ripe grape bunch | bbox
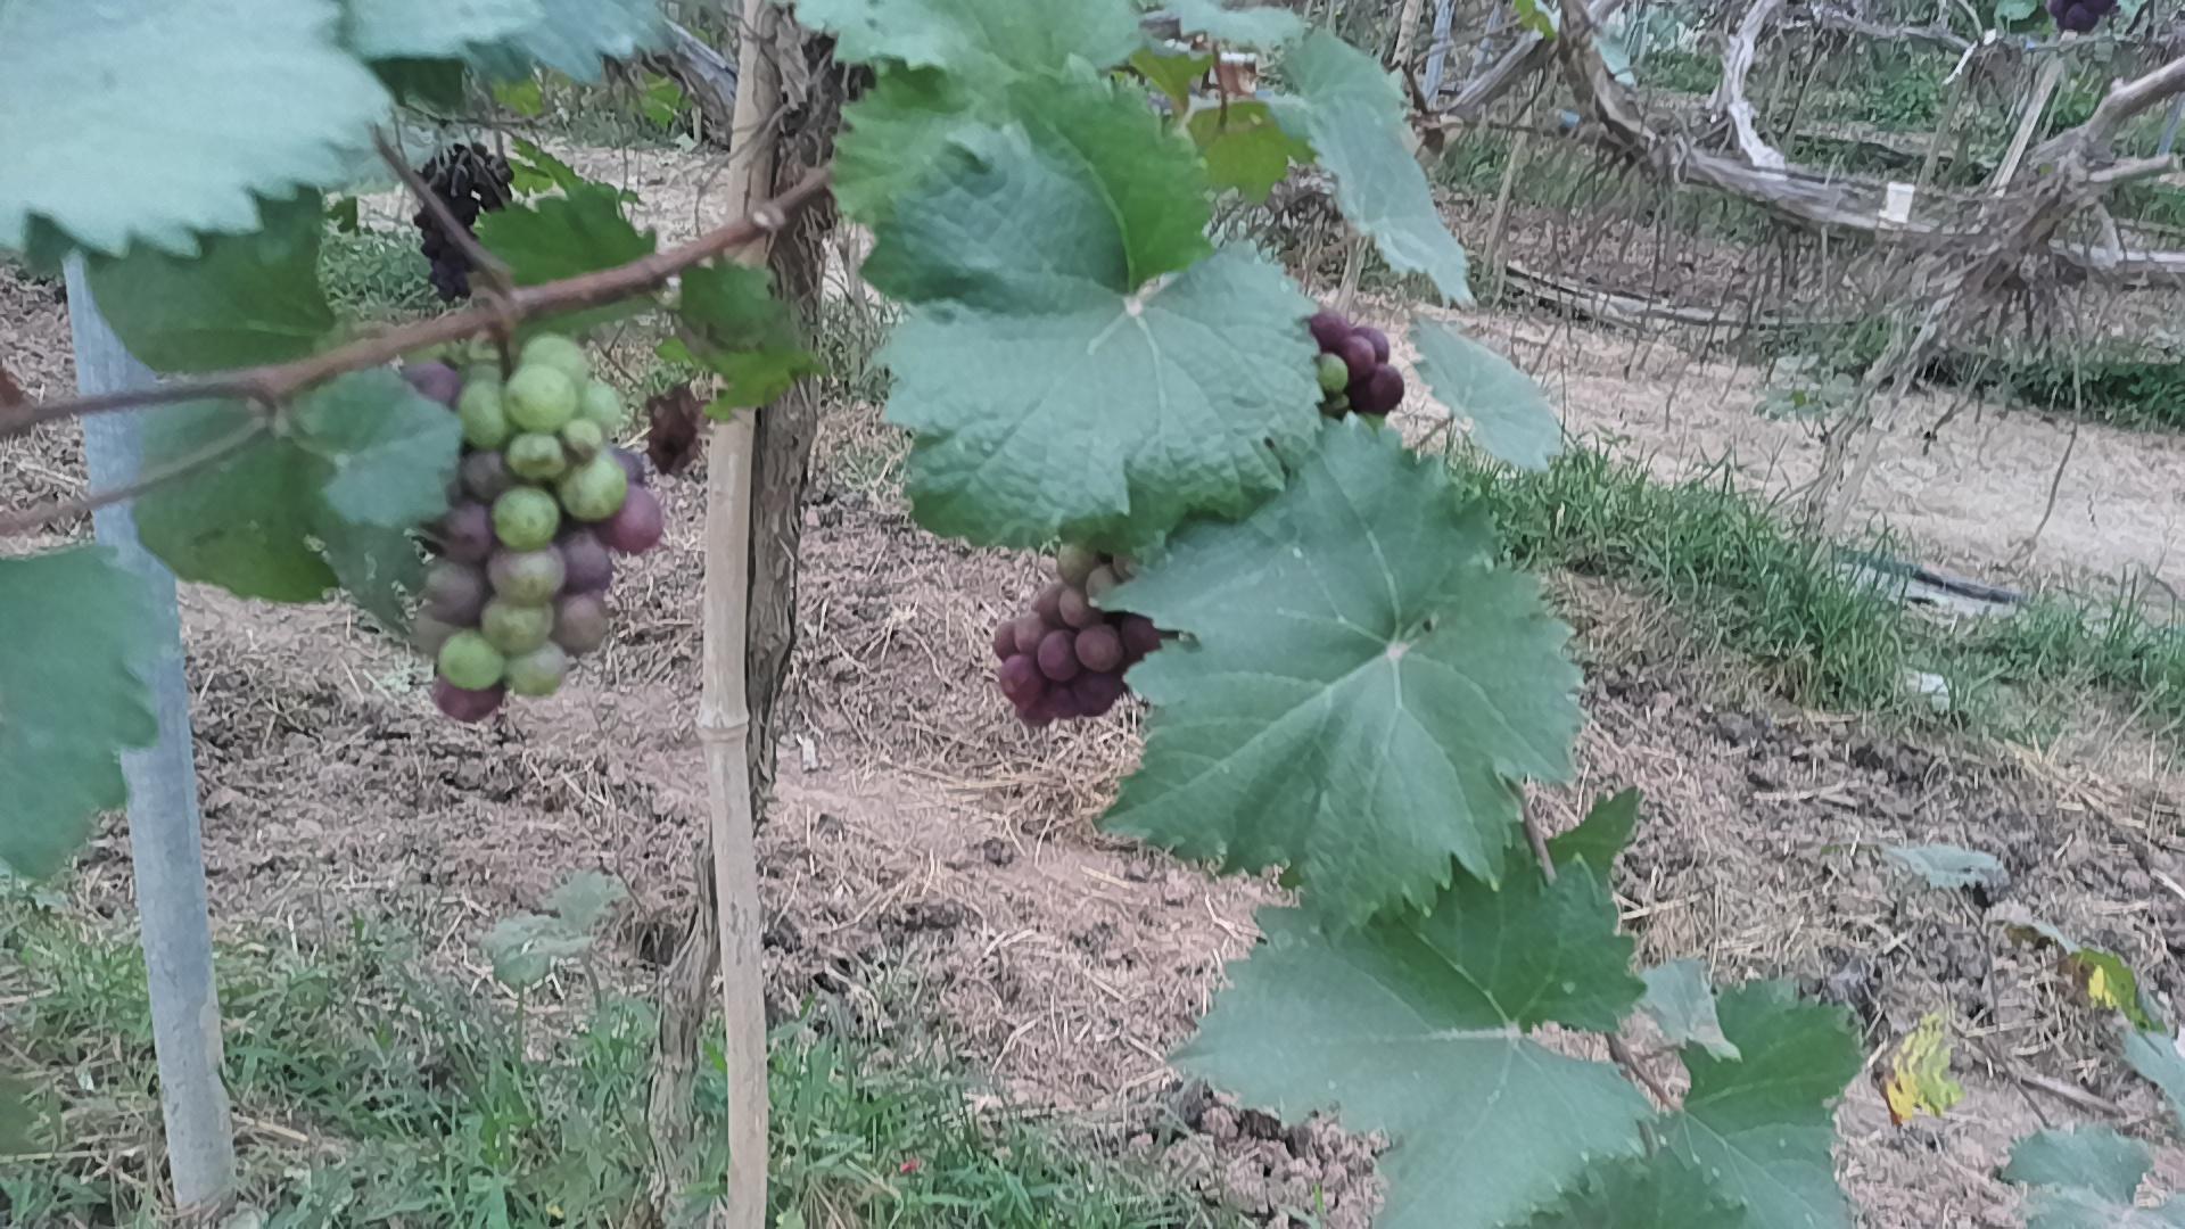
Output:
[412,142,512,303]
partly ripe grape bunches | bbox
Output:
[1308,310,1403,418]
[993,544,1159,724]
[402,335,662,723]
